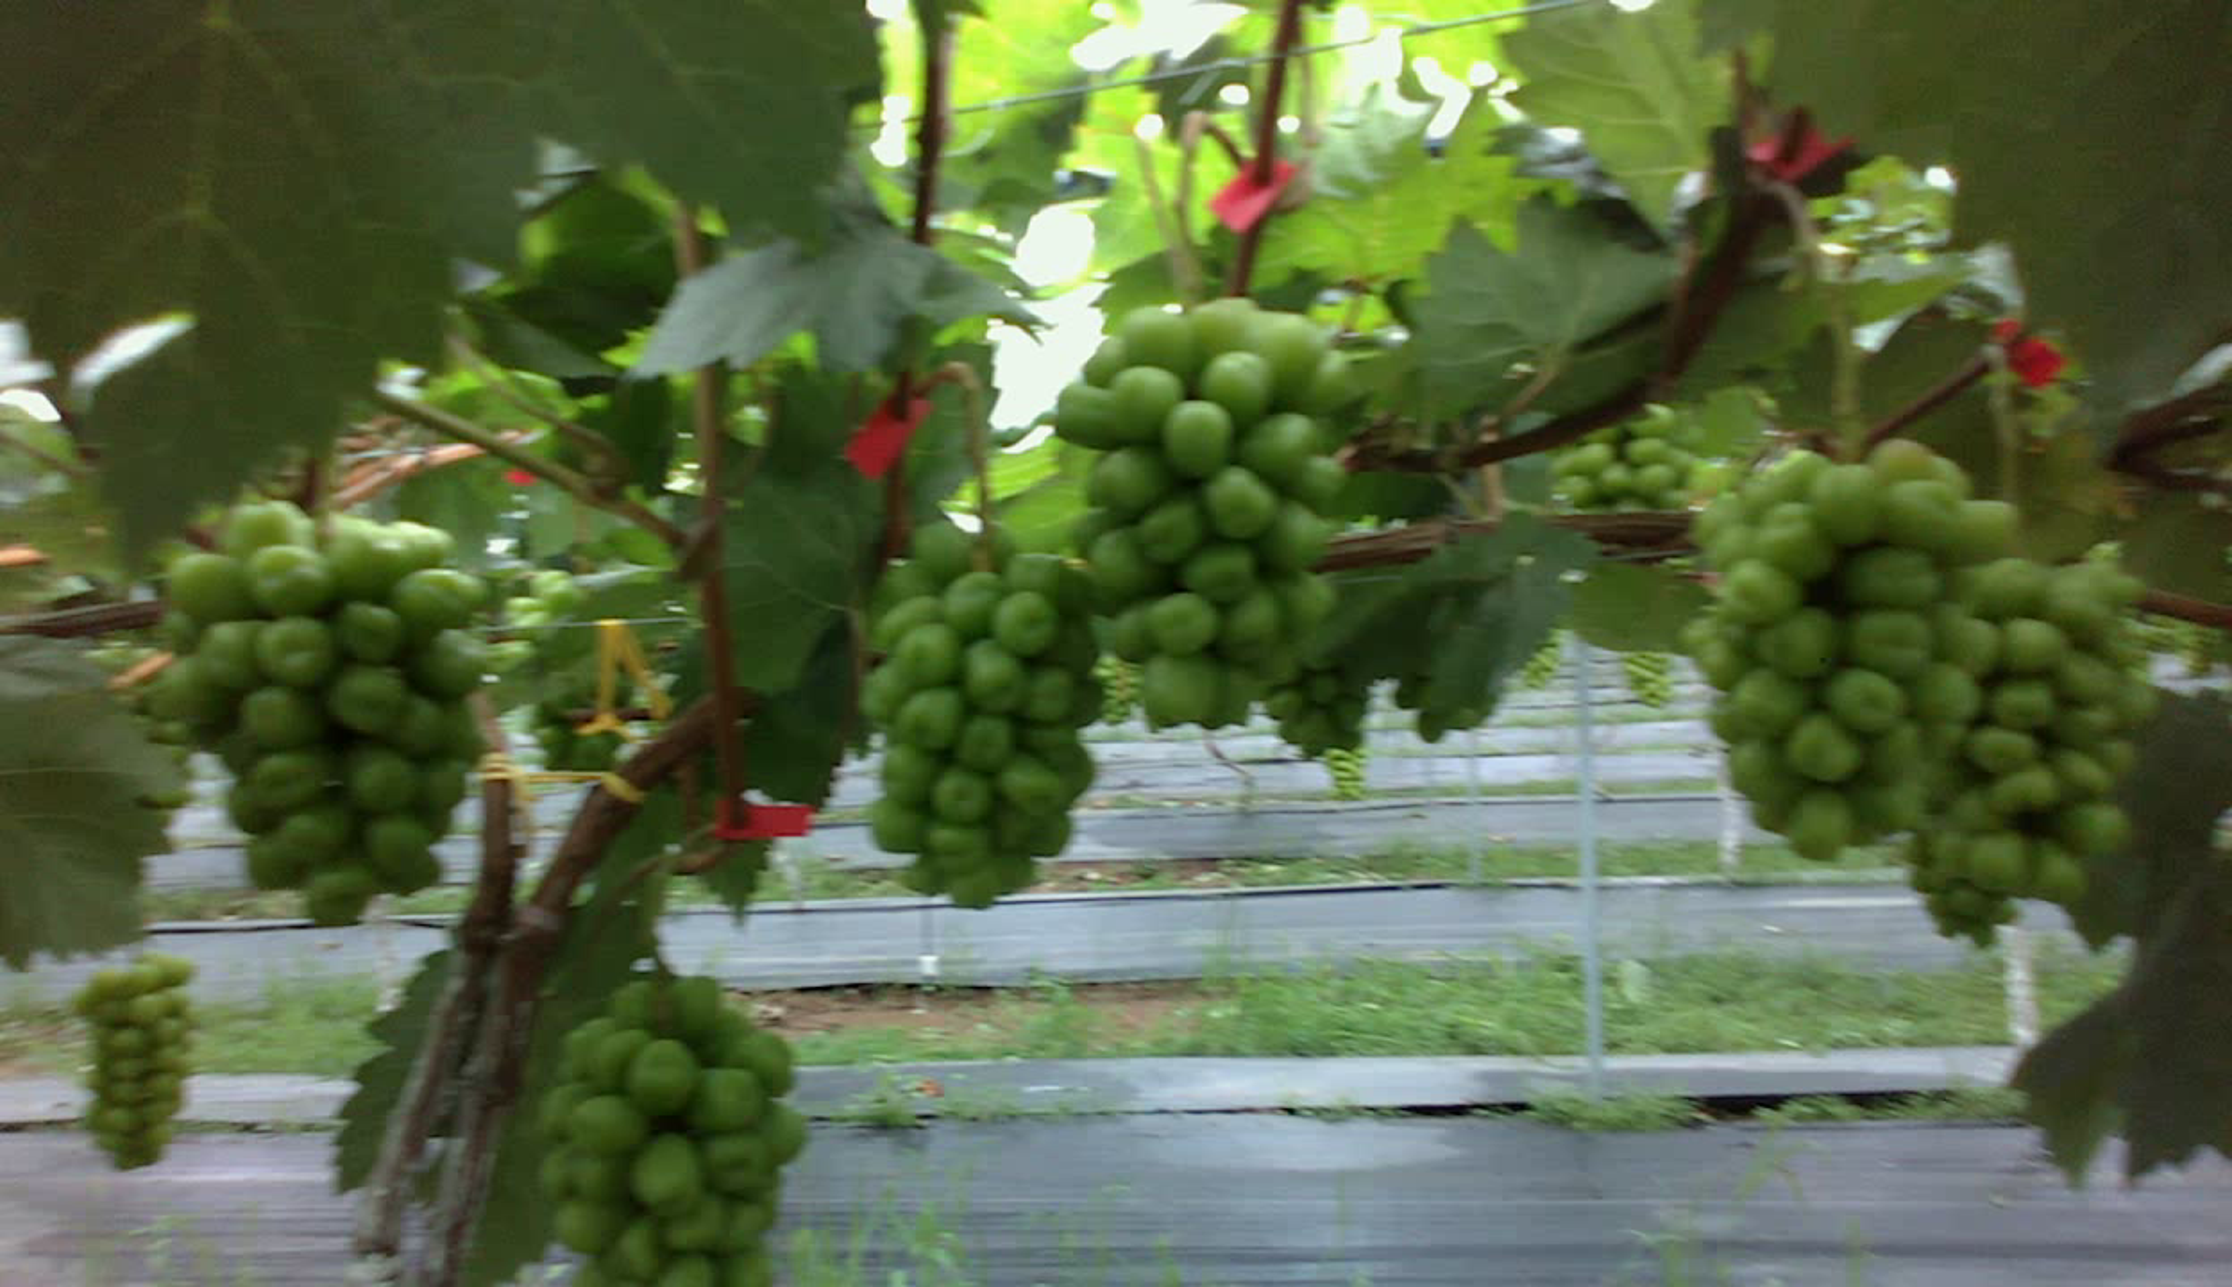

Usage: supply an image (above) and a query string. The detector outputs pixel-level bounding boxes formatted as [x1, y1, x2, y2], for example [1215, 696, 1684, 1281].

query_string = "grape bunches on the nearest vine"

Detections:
[1055, 295, 1368, 729]
[858, 517, 1105, 910]
[535, 974, 814, 1283]
[143, 500, 494, 924]
[1678, 438, 2021, 862]
[1896, 558, 2160, 947]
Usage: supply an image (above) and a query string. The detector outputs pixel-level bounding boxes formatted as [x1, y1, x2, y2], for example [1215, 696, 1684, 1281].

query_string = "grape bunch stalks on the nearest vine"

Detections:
[1170, 107, 1245, 295]
[635, 824, 715, 1033]
[1985, 343, 2023, 511]
[1747, 168, 1869, 456]
[308, 445, 336, 545]
[910, 359, 989, 565]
